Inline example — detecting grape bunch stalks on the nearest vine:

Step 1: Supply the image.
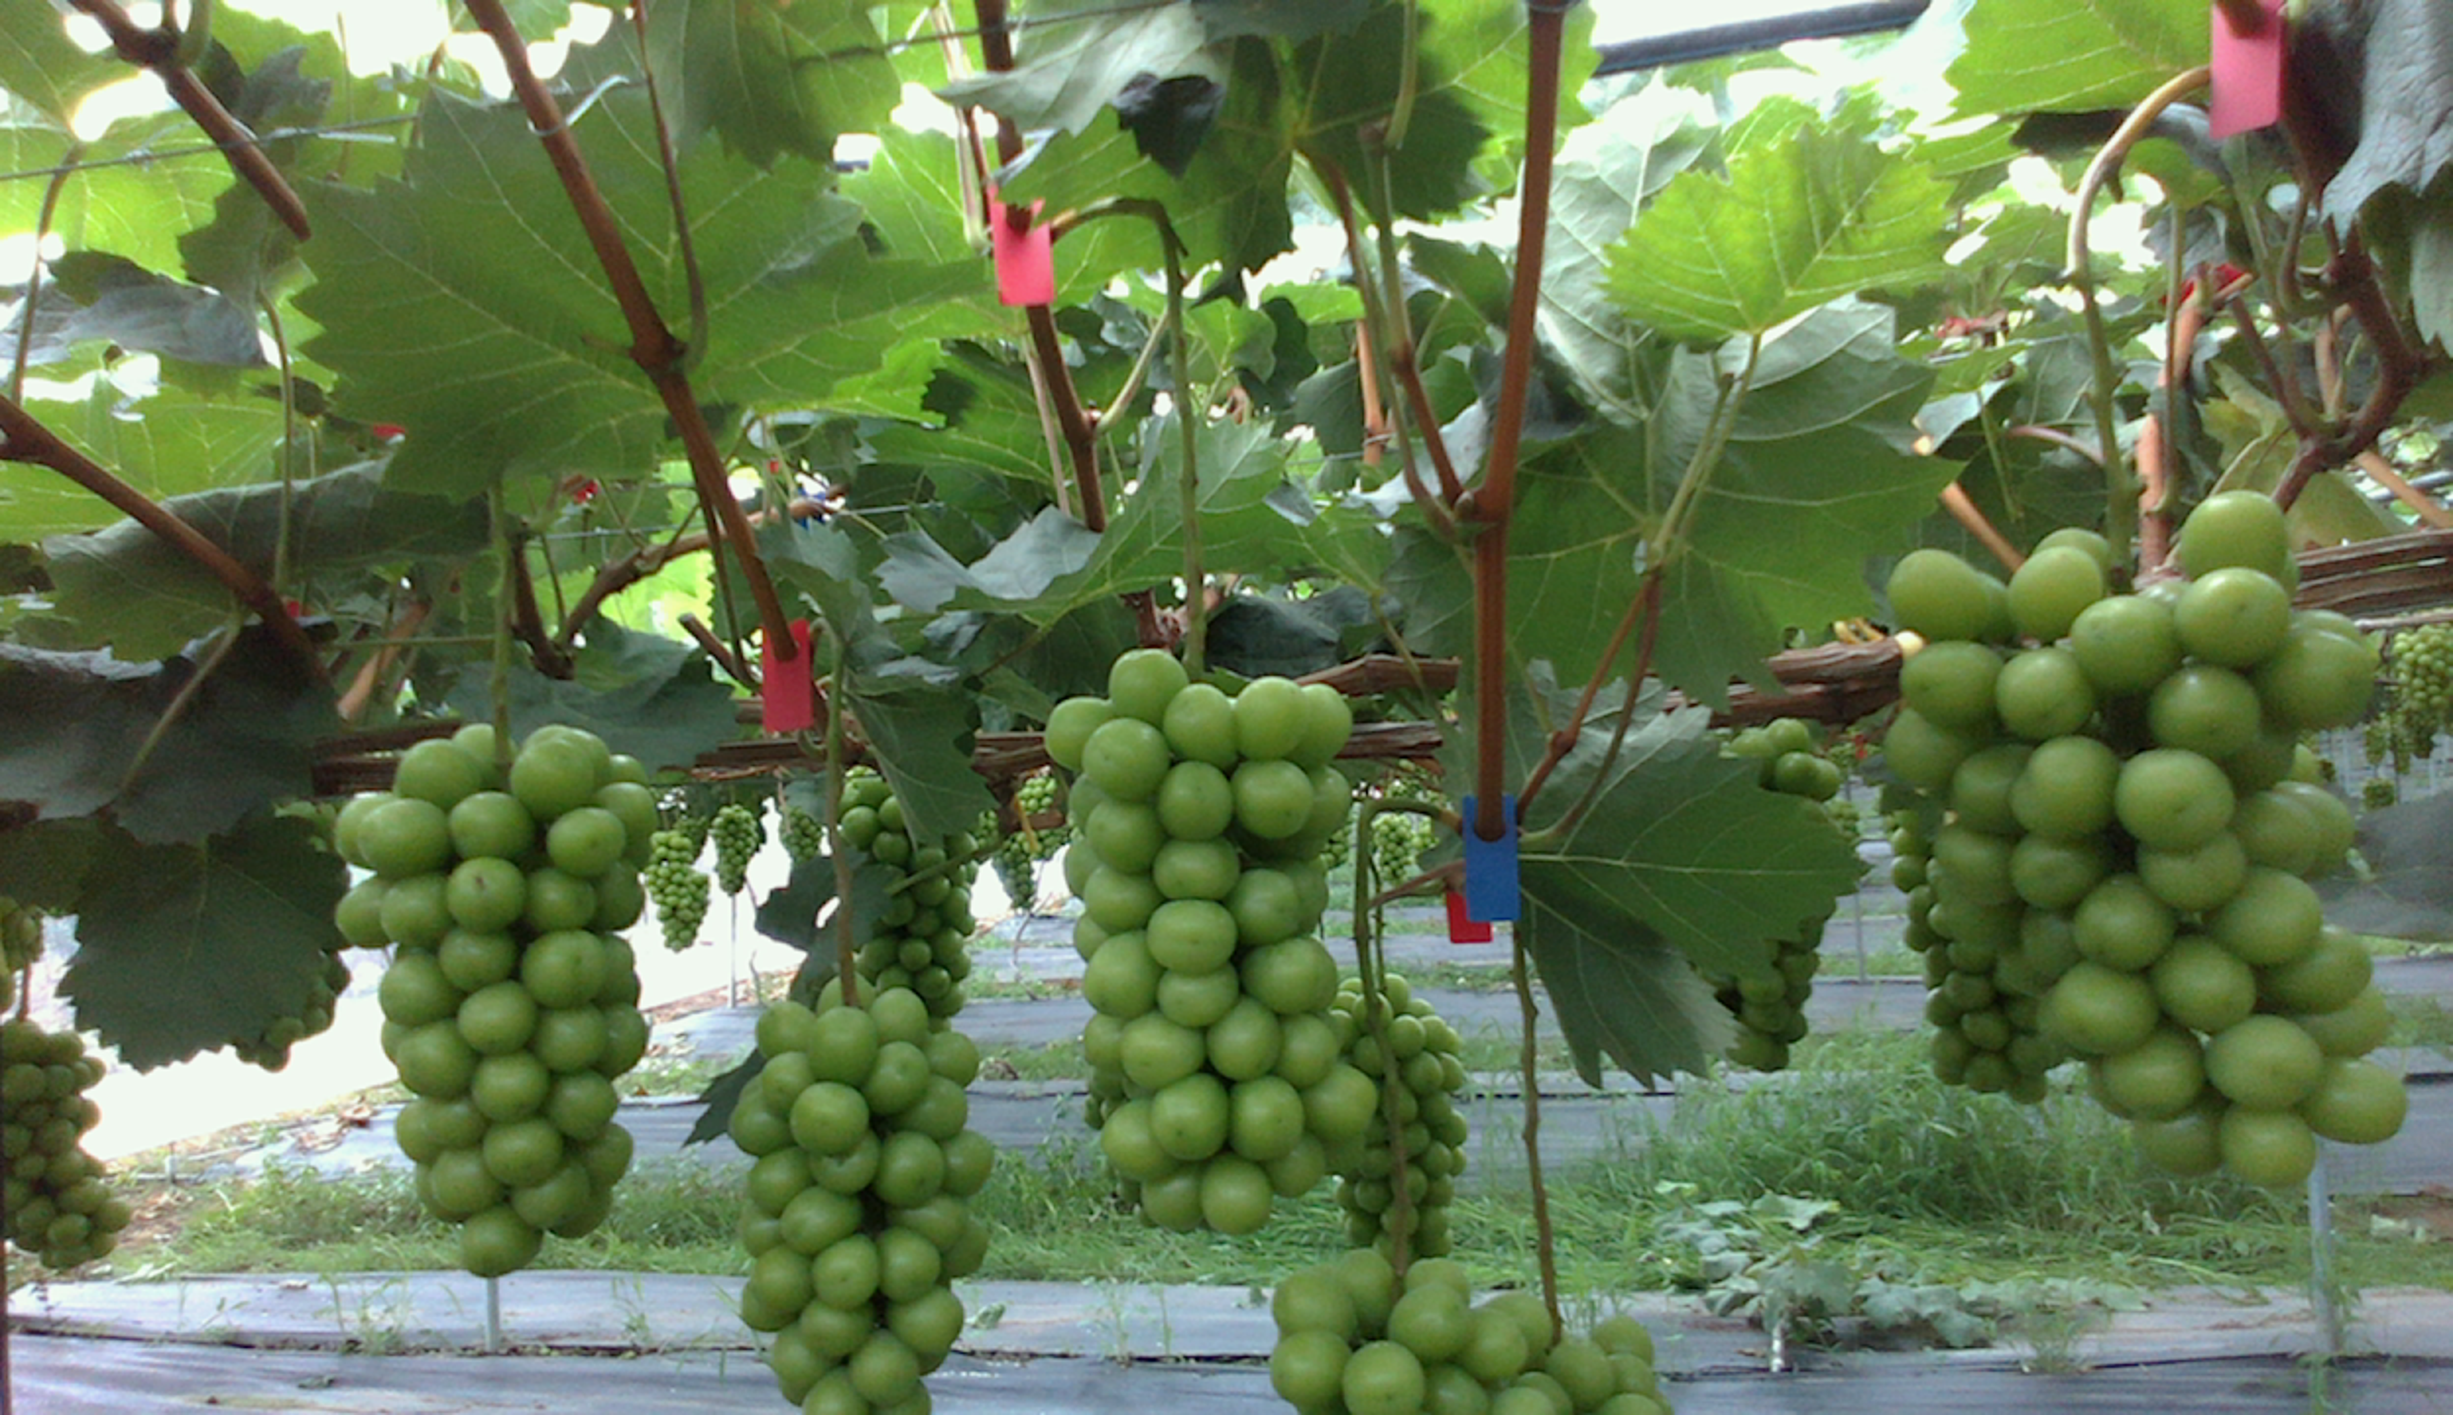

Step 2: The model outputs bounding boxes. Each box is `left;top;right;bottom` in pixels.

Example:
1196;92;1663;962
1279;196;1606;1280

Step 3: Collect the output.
485;487;511;774
1352;796;1462;1301
808;617;855;1006
2070;65;2211;590
1050;195;1207;678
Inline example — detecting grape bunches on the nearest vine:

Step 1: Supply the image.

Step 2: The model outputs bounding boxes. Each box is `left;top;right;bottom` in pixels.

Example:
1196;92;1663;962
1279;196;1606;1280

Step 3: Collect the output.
1266;1252;1673;1413
729;973;995;1413
330;723;656;1275
1042;649;1378;1234
1881;491;2410;1181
